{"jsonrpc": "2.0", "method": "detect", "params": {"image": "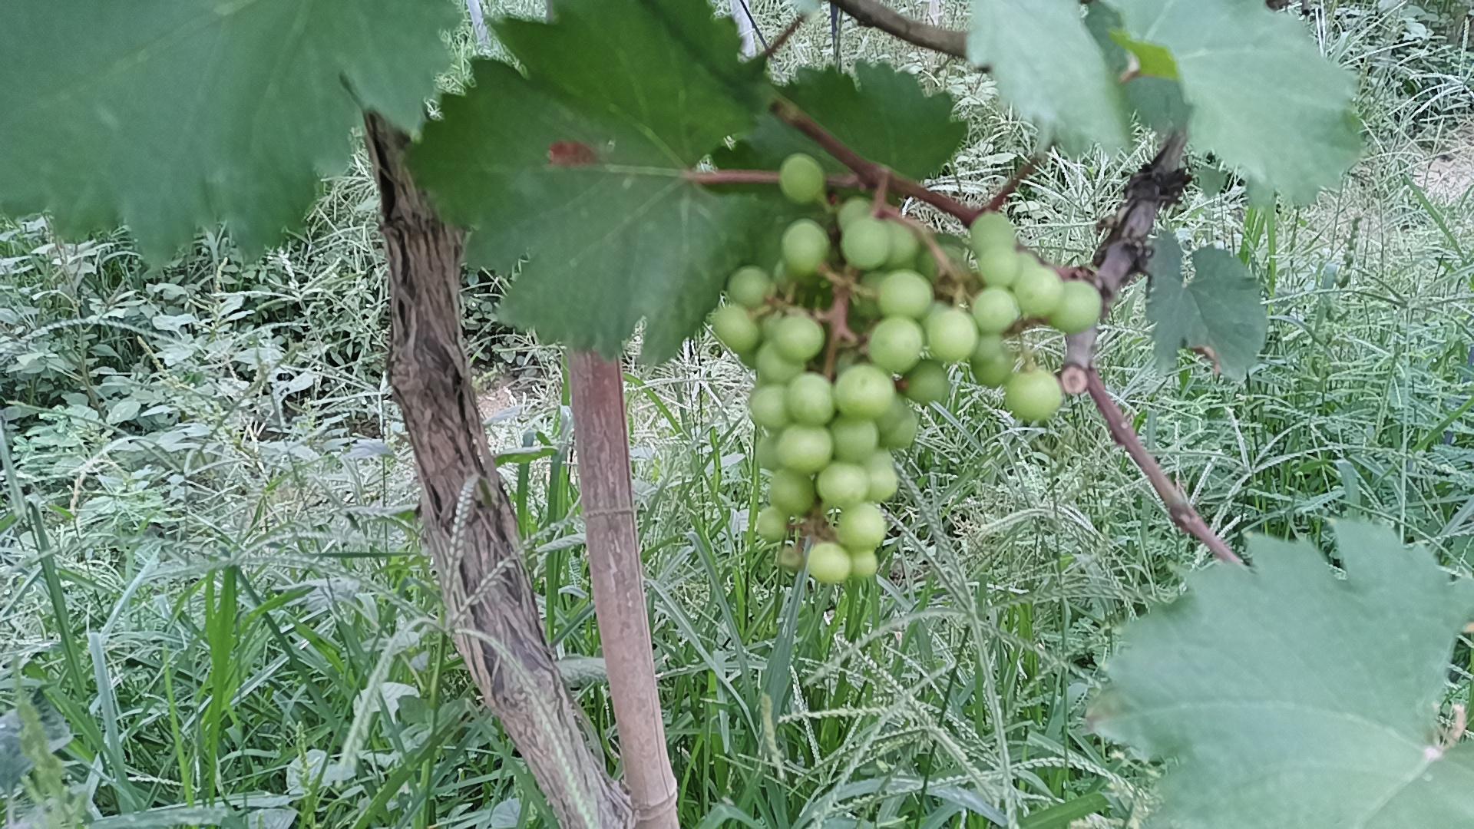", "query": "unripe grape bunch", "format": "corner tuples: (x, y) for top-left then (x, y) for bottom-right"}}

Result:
(712, 153), (1100, 583)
